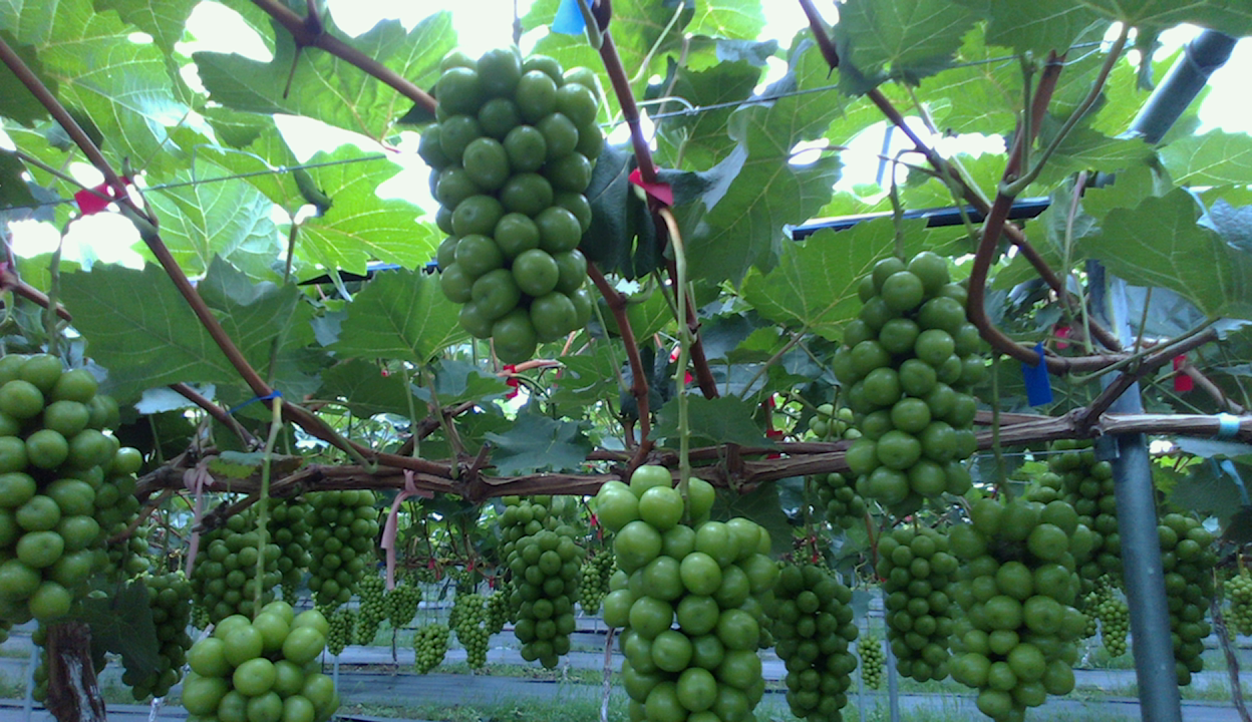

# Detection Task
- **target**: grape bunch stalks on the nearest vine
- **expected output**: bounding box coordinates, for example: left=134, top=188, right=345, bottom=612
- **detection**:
left=254, top=401, right=283, bottom=621
left=992, top=349, right=1015, bottom=503
left=660, top=206, right=692, bottom=529
left=513, top=22, right=523, bottom=60
left=45, top=213, right=83, bottom=356
left=889, top=148, right=919, bottom=261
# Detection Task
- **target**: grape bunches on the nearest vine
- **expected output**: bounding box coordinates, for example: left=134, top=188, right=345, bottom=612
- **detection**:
left=946, top=497, right=1093, bottom=721
left=594, top=464, right=778, bottom=721
left=834, top=252, right=987, bottom=520
left=0, top=353, right=113, bottom=626
left=183, top=600, right=334, bottom=721
left=417, top=48, right=605, bottom=363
